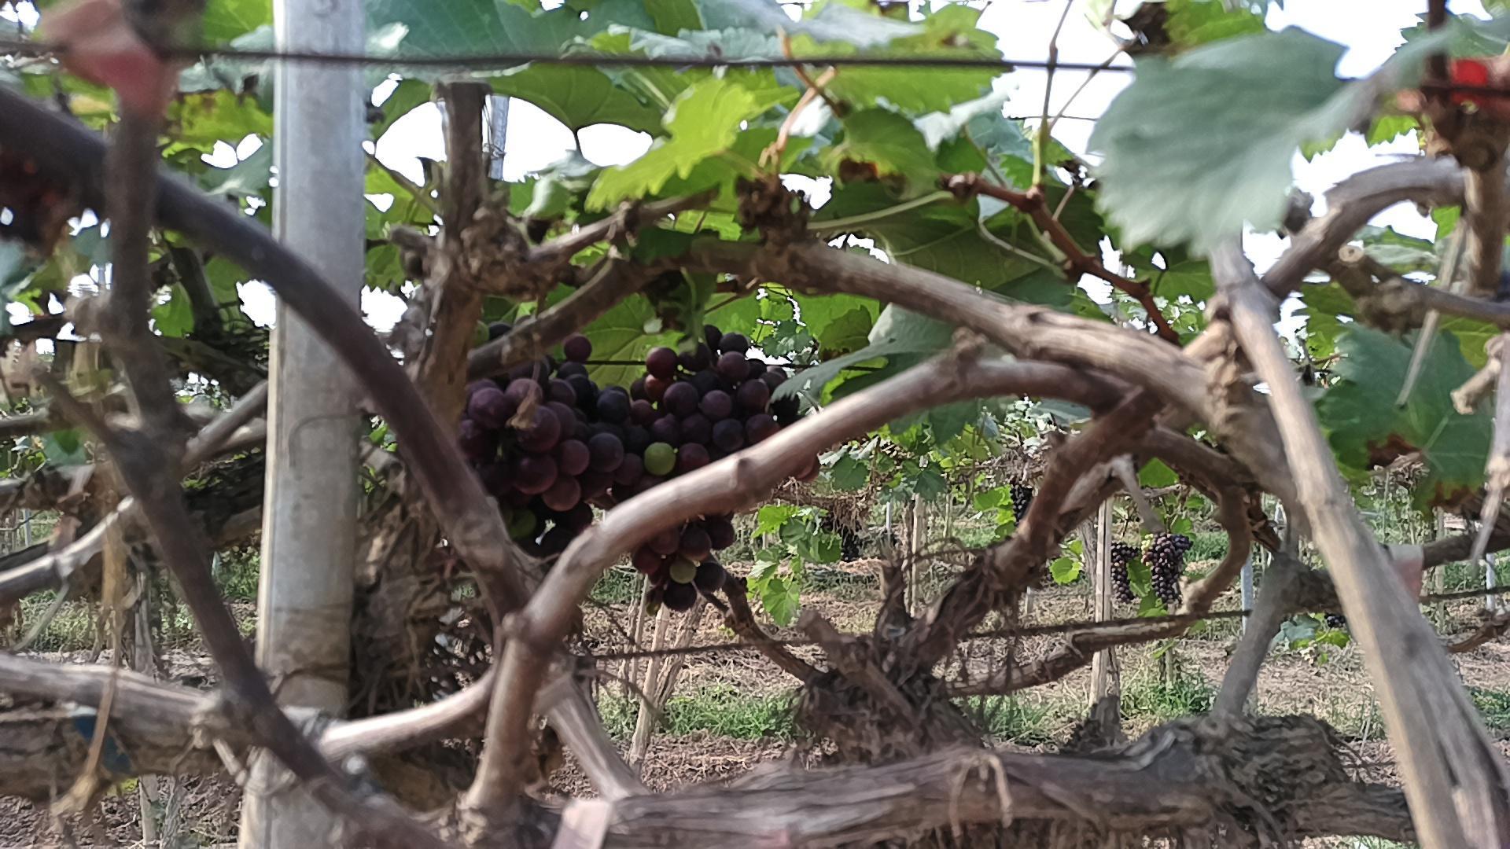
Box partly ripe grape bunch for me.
[461,325,800,613]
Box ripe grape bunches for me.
[1110,542,1141,603]
[1010,479,1033,525]
[1141,532,1192,608]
